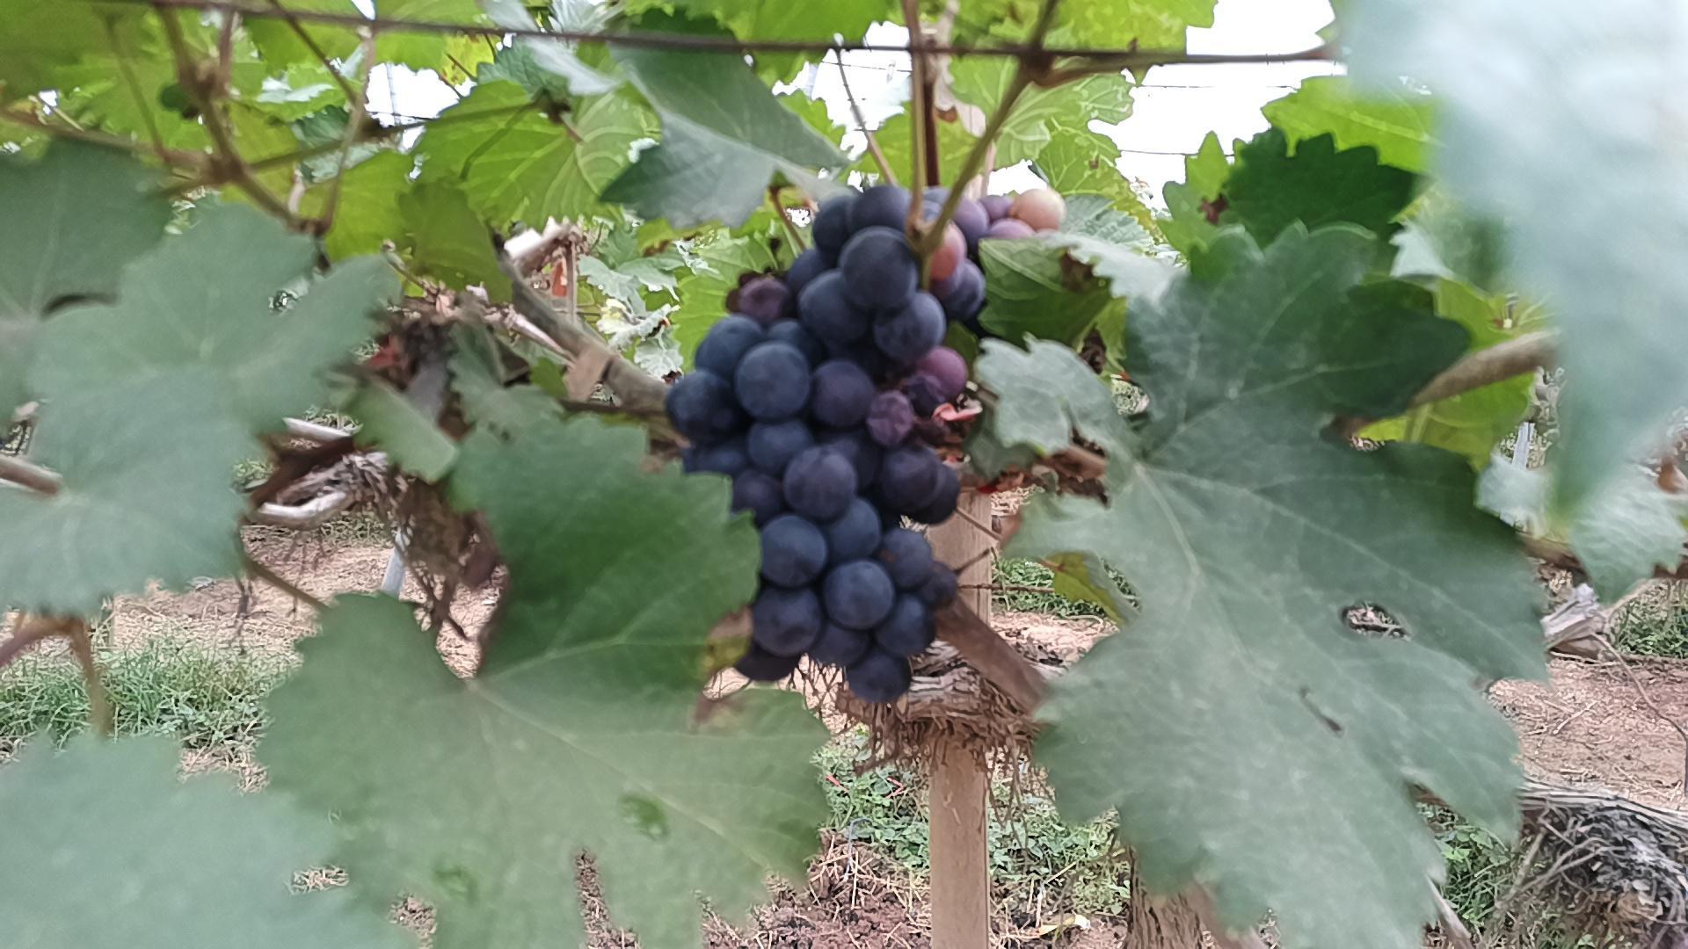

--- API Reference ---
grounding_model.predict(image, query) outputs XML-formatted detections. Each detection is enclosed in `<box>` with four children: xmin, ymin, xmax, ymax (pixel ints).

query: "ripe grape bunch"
<box><xmin>666</xmin><ymin>185</ymin><xmax>1063</xmax><ymax>702</ymax></box>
